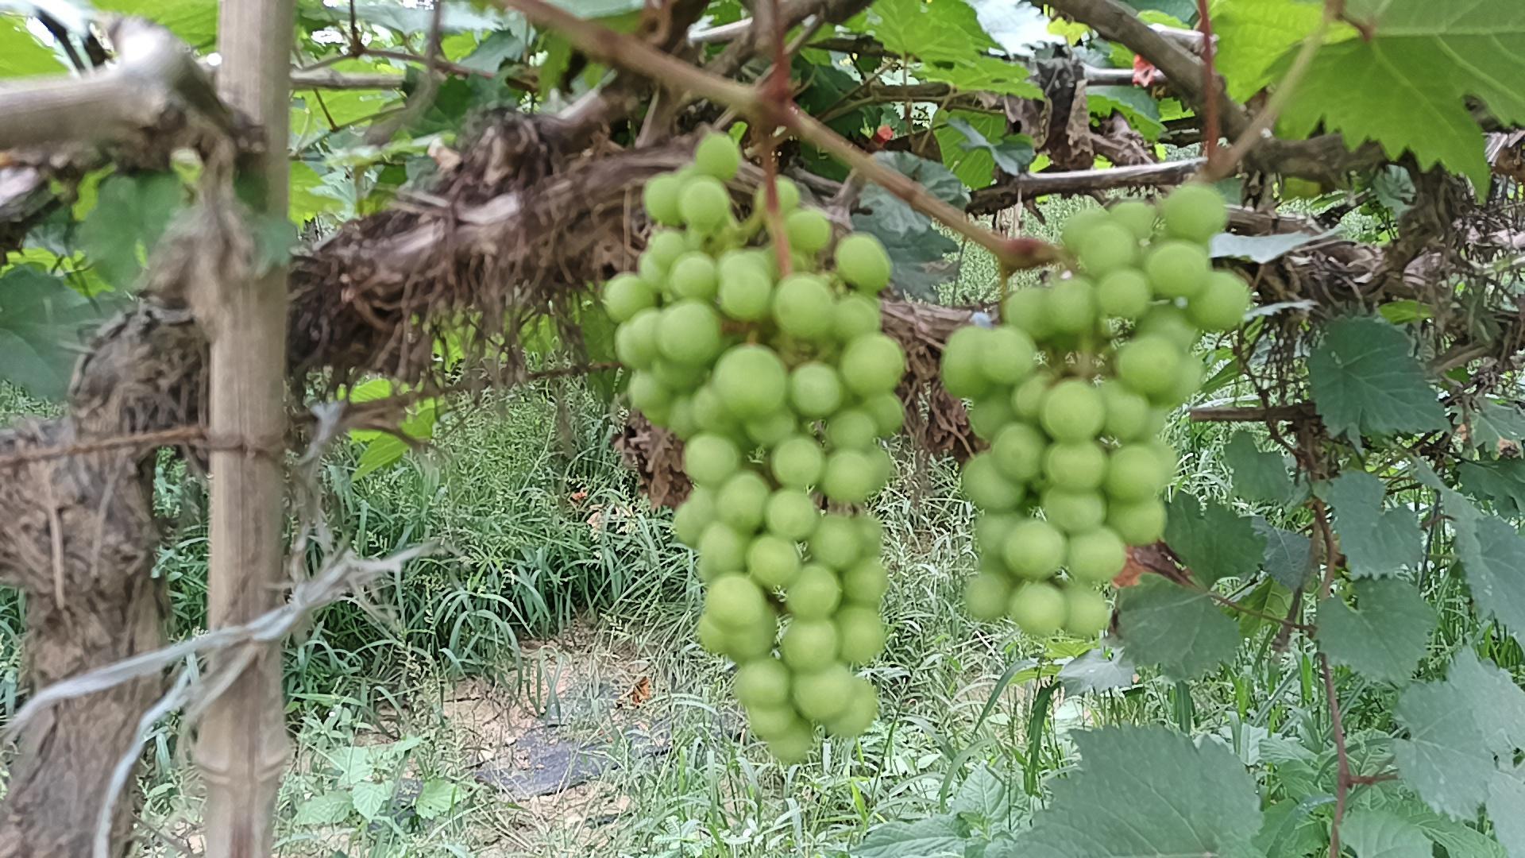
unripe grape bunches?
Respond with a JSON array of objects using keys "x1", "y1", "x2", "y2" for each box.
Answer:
[
  {"x1": 603, "y1": 133, "x2": 903, "y2": 764},
  {"x1": 942, "y1": 186, "x2": 1249, "y2": 637}
]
